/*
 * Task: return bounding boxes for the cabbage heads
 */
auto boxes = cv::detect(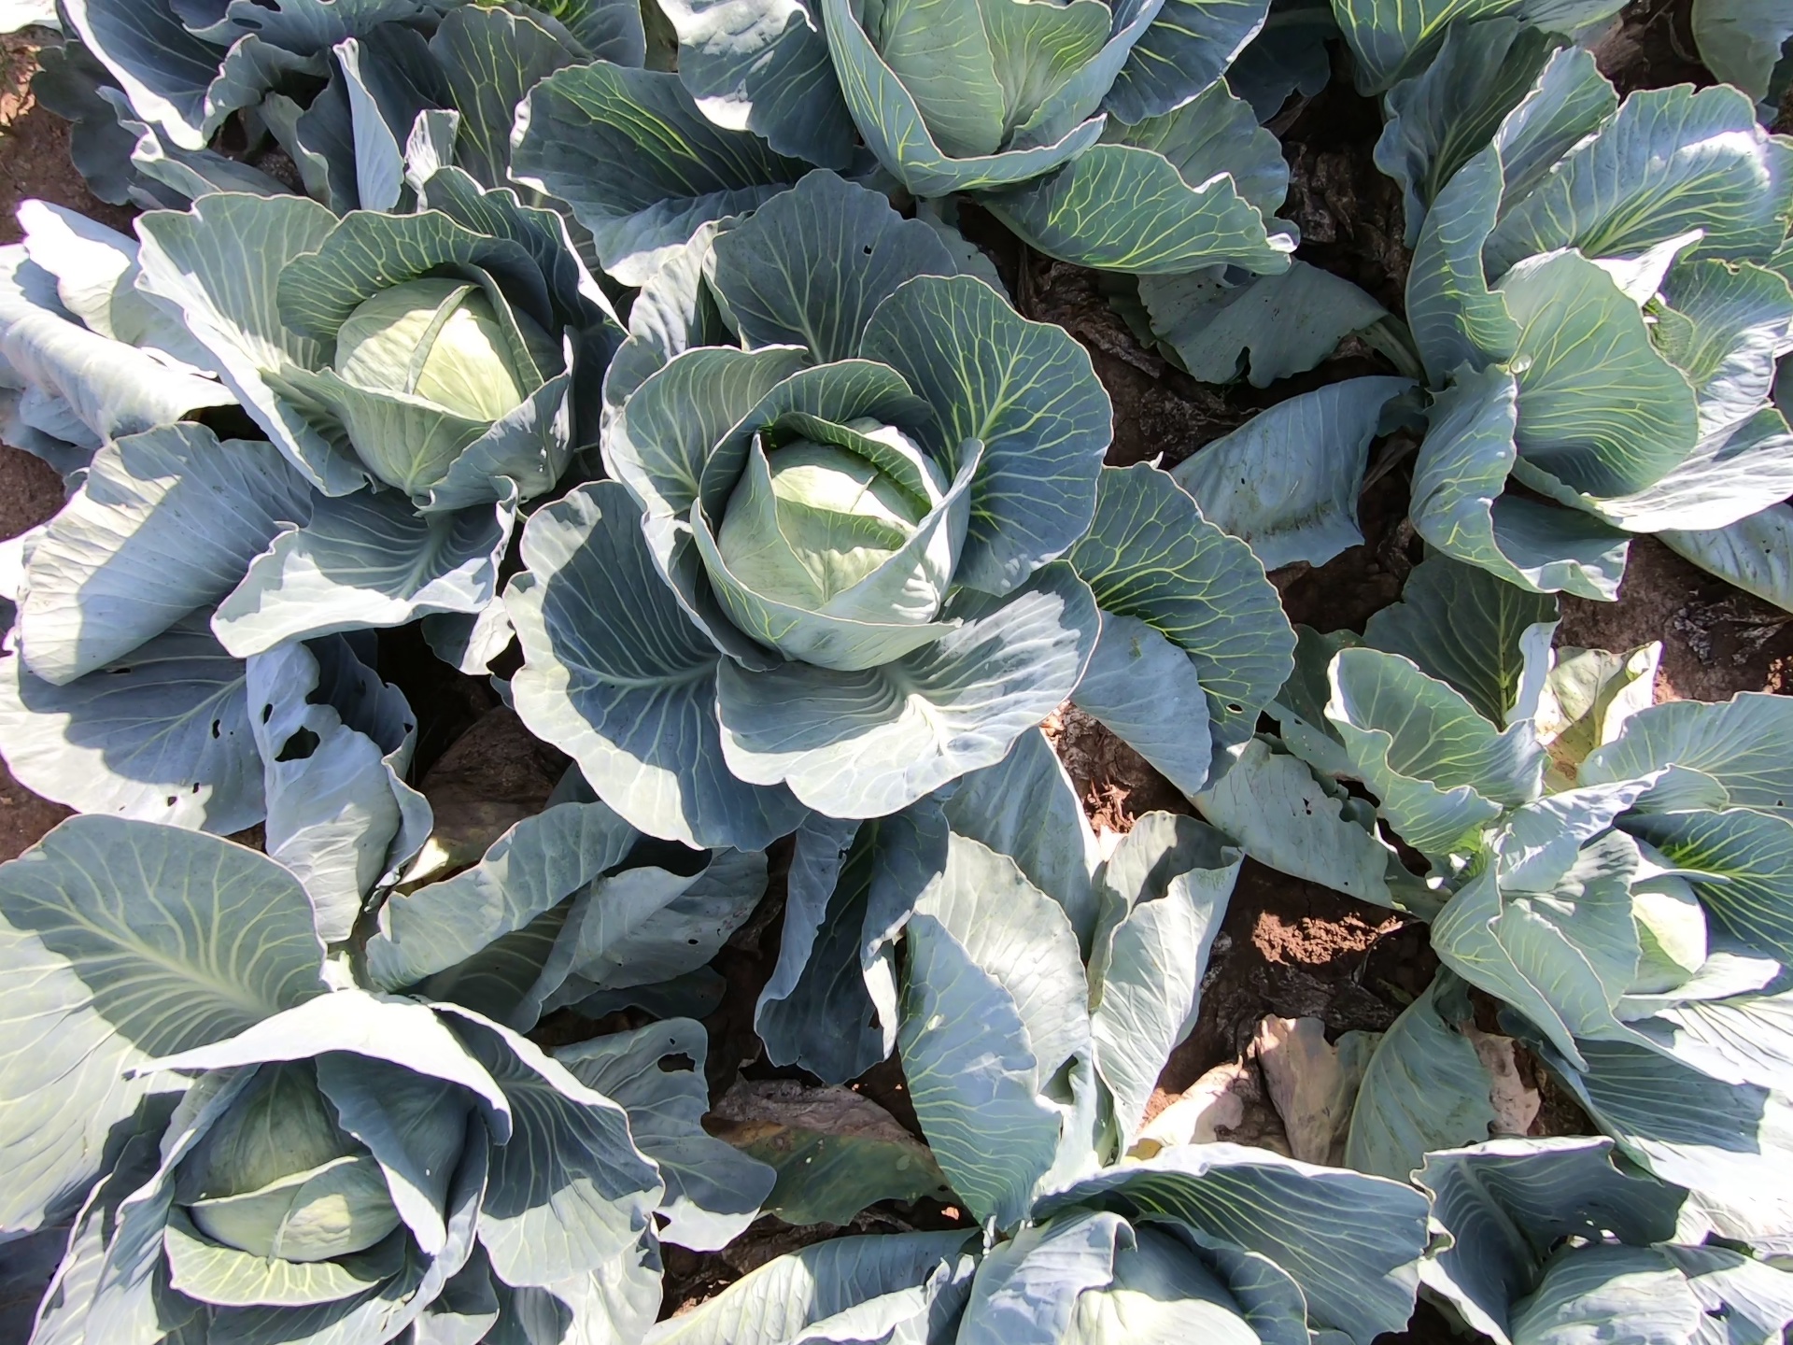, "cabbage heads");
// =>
[329,275,572,495]
[948,3,1063,116]
[1519,254,1666,411]
[1002,1227,1217,1343]
[713,421,953,657]
[1509,828,1705,1004]
[174,1016,458,1262]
